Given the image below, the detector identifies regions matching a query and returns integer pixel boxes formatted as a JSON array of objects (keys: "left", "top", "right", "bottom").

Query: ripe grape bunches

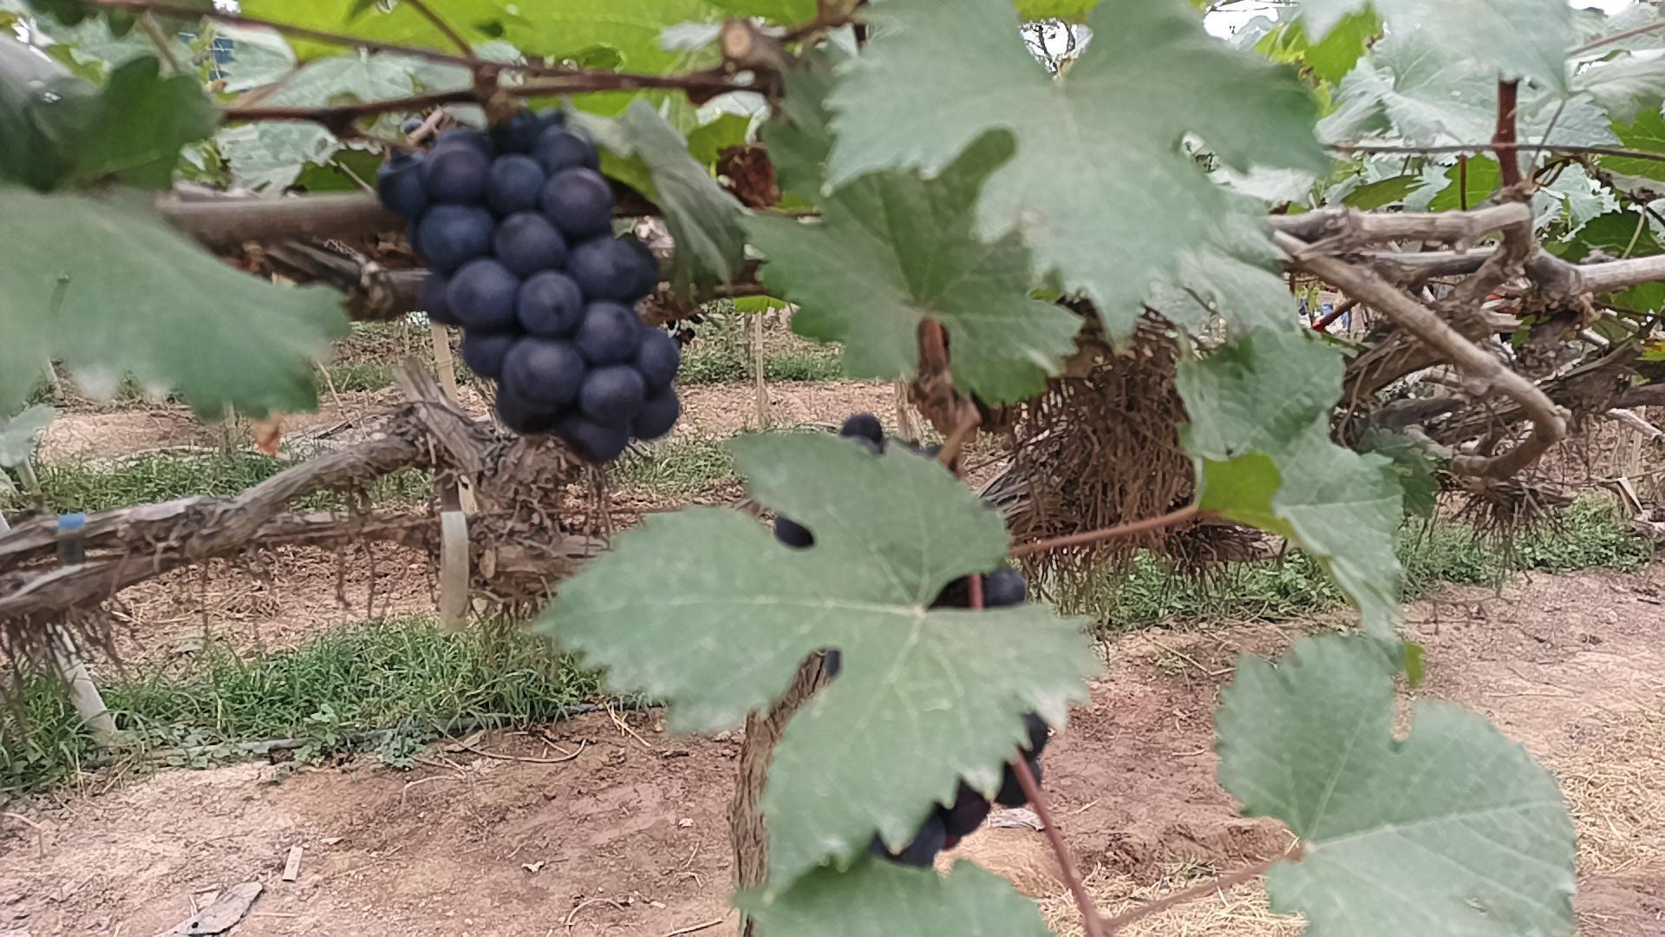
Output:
[
  {"left": 377, "top": 109, "right": 681, "bottom": 463},
  {"left": 773, "top": 412, "right": 1048, "bottom": 868}
]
